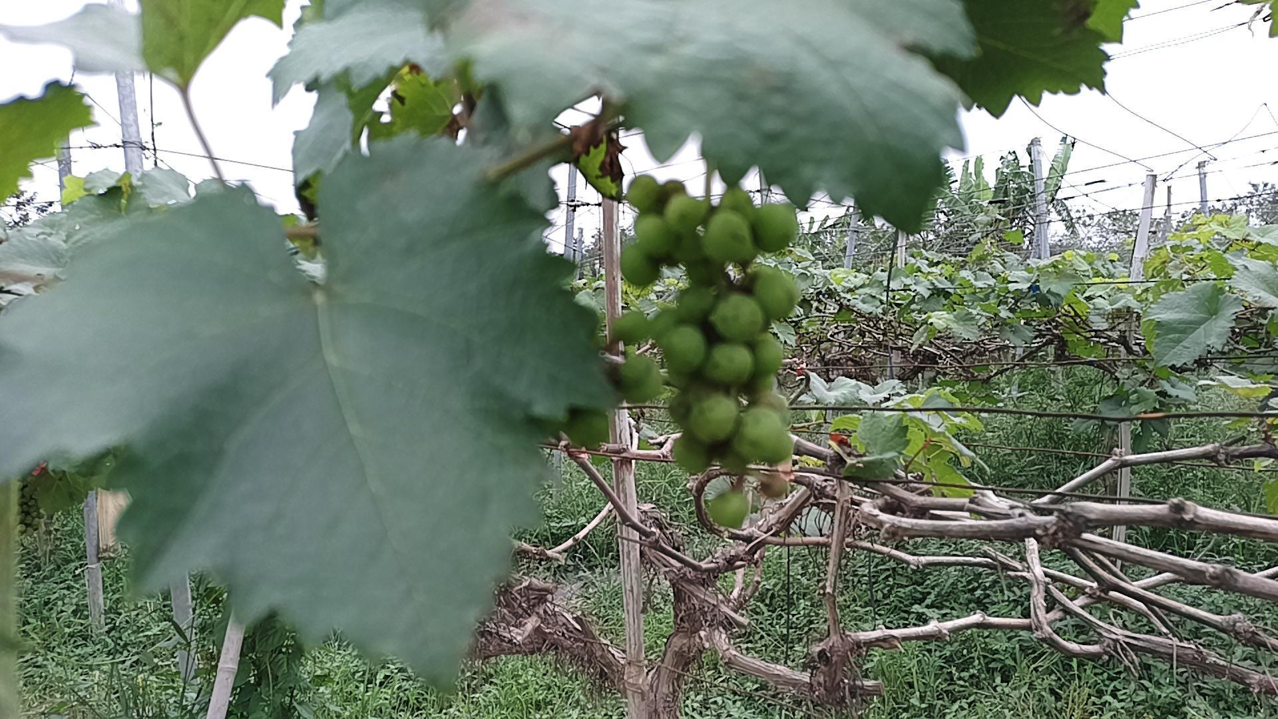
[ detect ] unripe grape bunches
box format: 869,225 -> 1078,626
19,479 -> 46,538
606,174 -> 800,527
